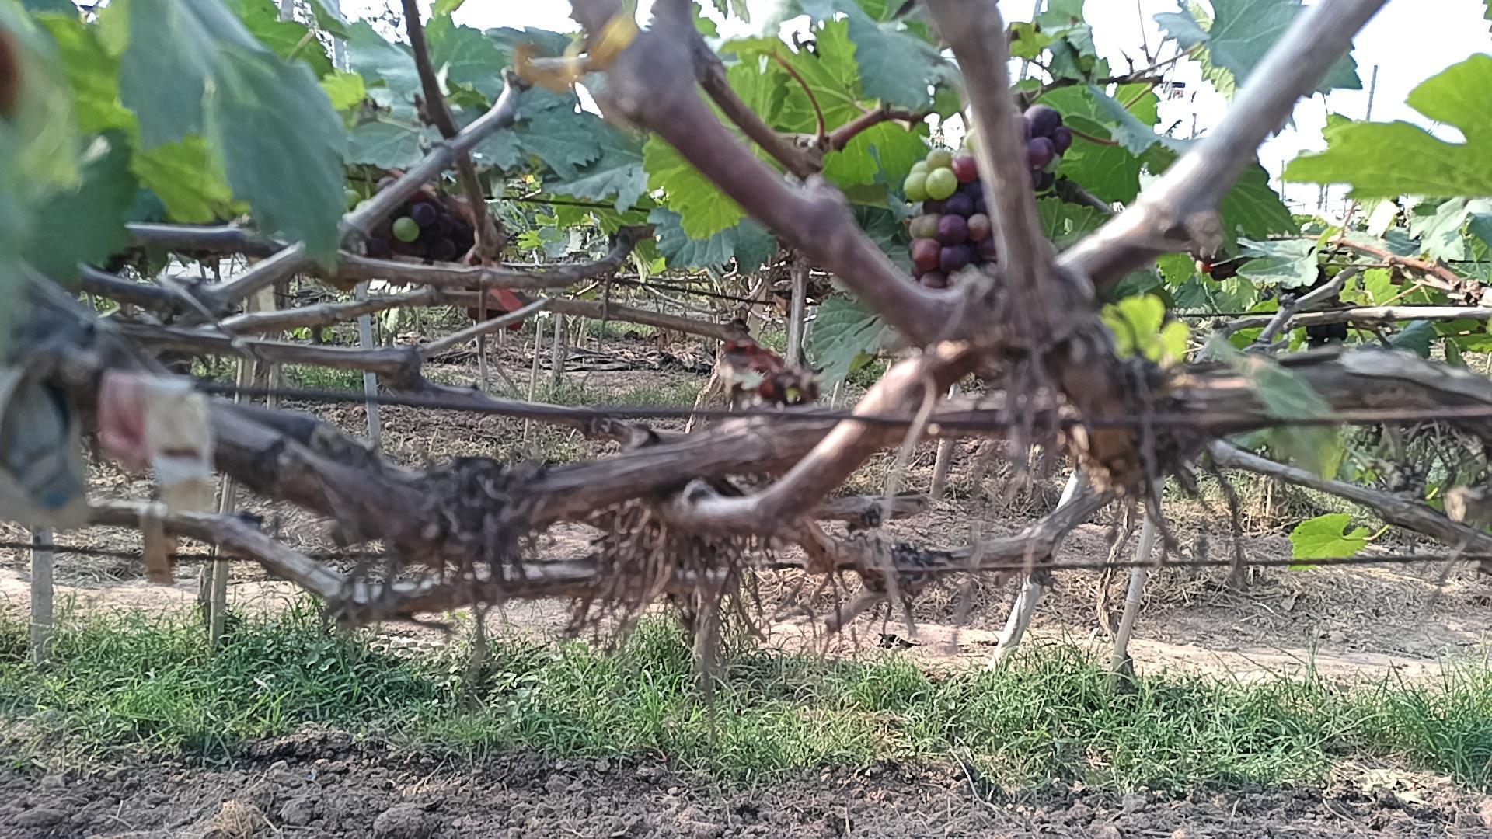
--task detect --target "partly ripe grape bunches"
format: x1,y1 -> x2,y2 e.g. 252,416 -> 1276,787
905,105 -> 1072,291
341,176 -> 527,332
